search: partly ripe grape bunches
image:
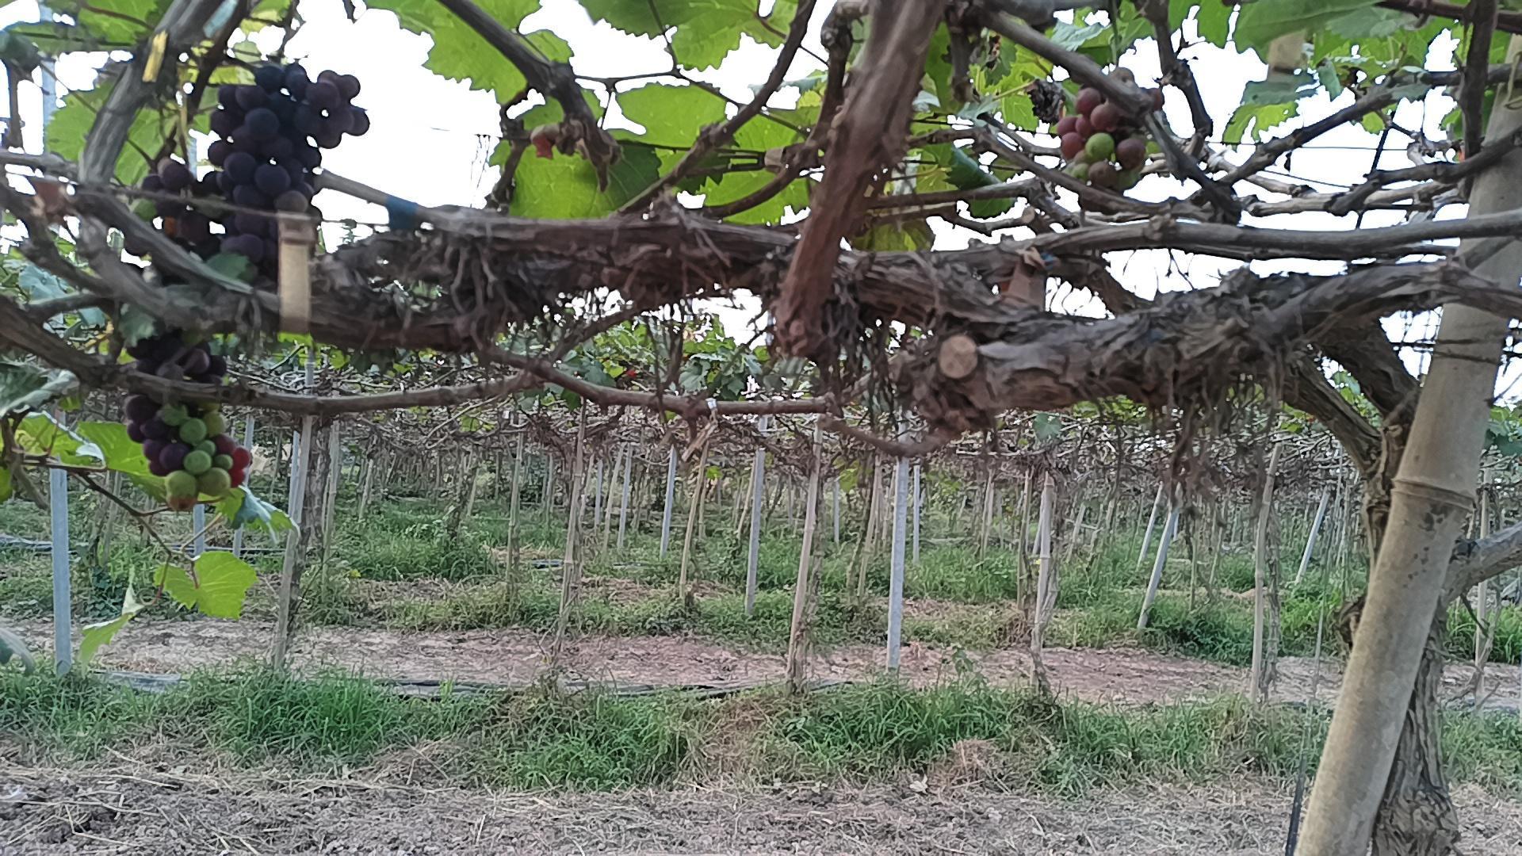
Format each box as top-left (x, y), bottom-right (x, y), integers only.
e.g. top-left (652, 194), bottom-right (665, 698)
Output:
top-left (1057, 86), bottom-right (1165, 187)
top-left (124, 328), bottom-right (251, 510)
top-left (132, 62), bottom-right (369, 280)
